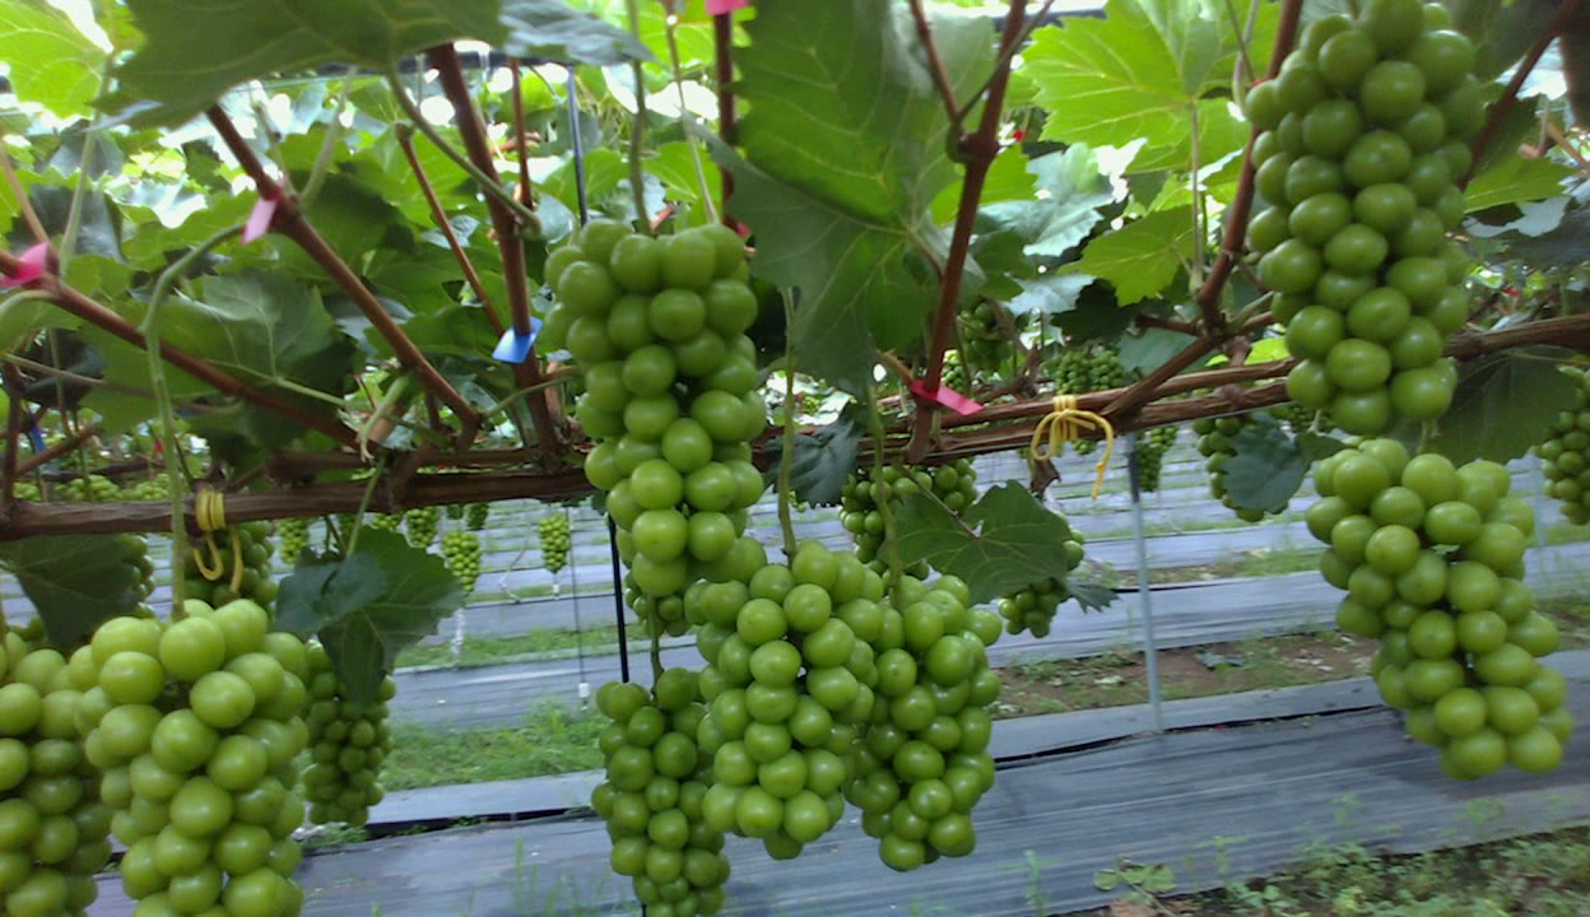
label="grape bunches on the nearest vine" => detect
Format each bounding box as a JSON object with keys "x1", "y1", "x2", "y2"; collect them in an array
[
  {"x1": 589, "y1": 667, "x2": 730, "y2": 916},
  {"x1": 684, "y1": 539, "x2": 884, "y2": 860},
  {"x1": 541, "y1": 218, "x2": 767, "y2": 597},
  {"x1": 66, "y1": 600, "x2": 310, "y2": 916},
  {"x1": 1301, "y1": 437, "x2": 1572, "y2": 779},
  {"x1": 1238, "y1": 0, "x2": 1488, "y2": 438},
  {"x1": 846, "y1": 577, "x2": 1004, "y2": 871},
  {"x1": 0, "y1": 630, "x2": 115, "y2": 916}
]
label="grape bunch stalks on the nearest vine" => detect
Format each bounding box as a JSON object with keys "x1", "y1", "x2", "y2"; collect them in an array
[
  {"x1": 1417, "y1": 423, "x2": 1440, "y2": 453},
  {"x1": 778, "y1": 290, "x2": 796, "y2": 563},
  {"x1": 1345, "y1": 1, "x2": 1358, "y2": 18},
  {"x1": 869, "y1": 387, "x2": 902, "y2": 615},
  {"x1": 628, "y1": 0, "x2": 654, "y2": 238},
  {"x1": 138, "y1": 222, "x2": 241, "y2": 619},
  {"x1": 648, "y1": 600, "x2": 664, "y2": 690}
]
